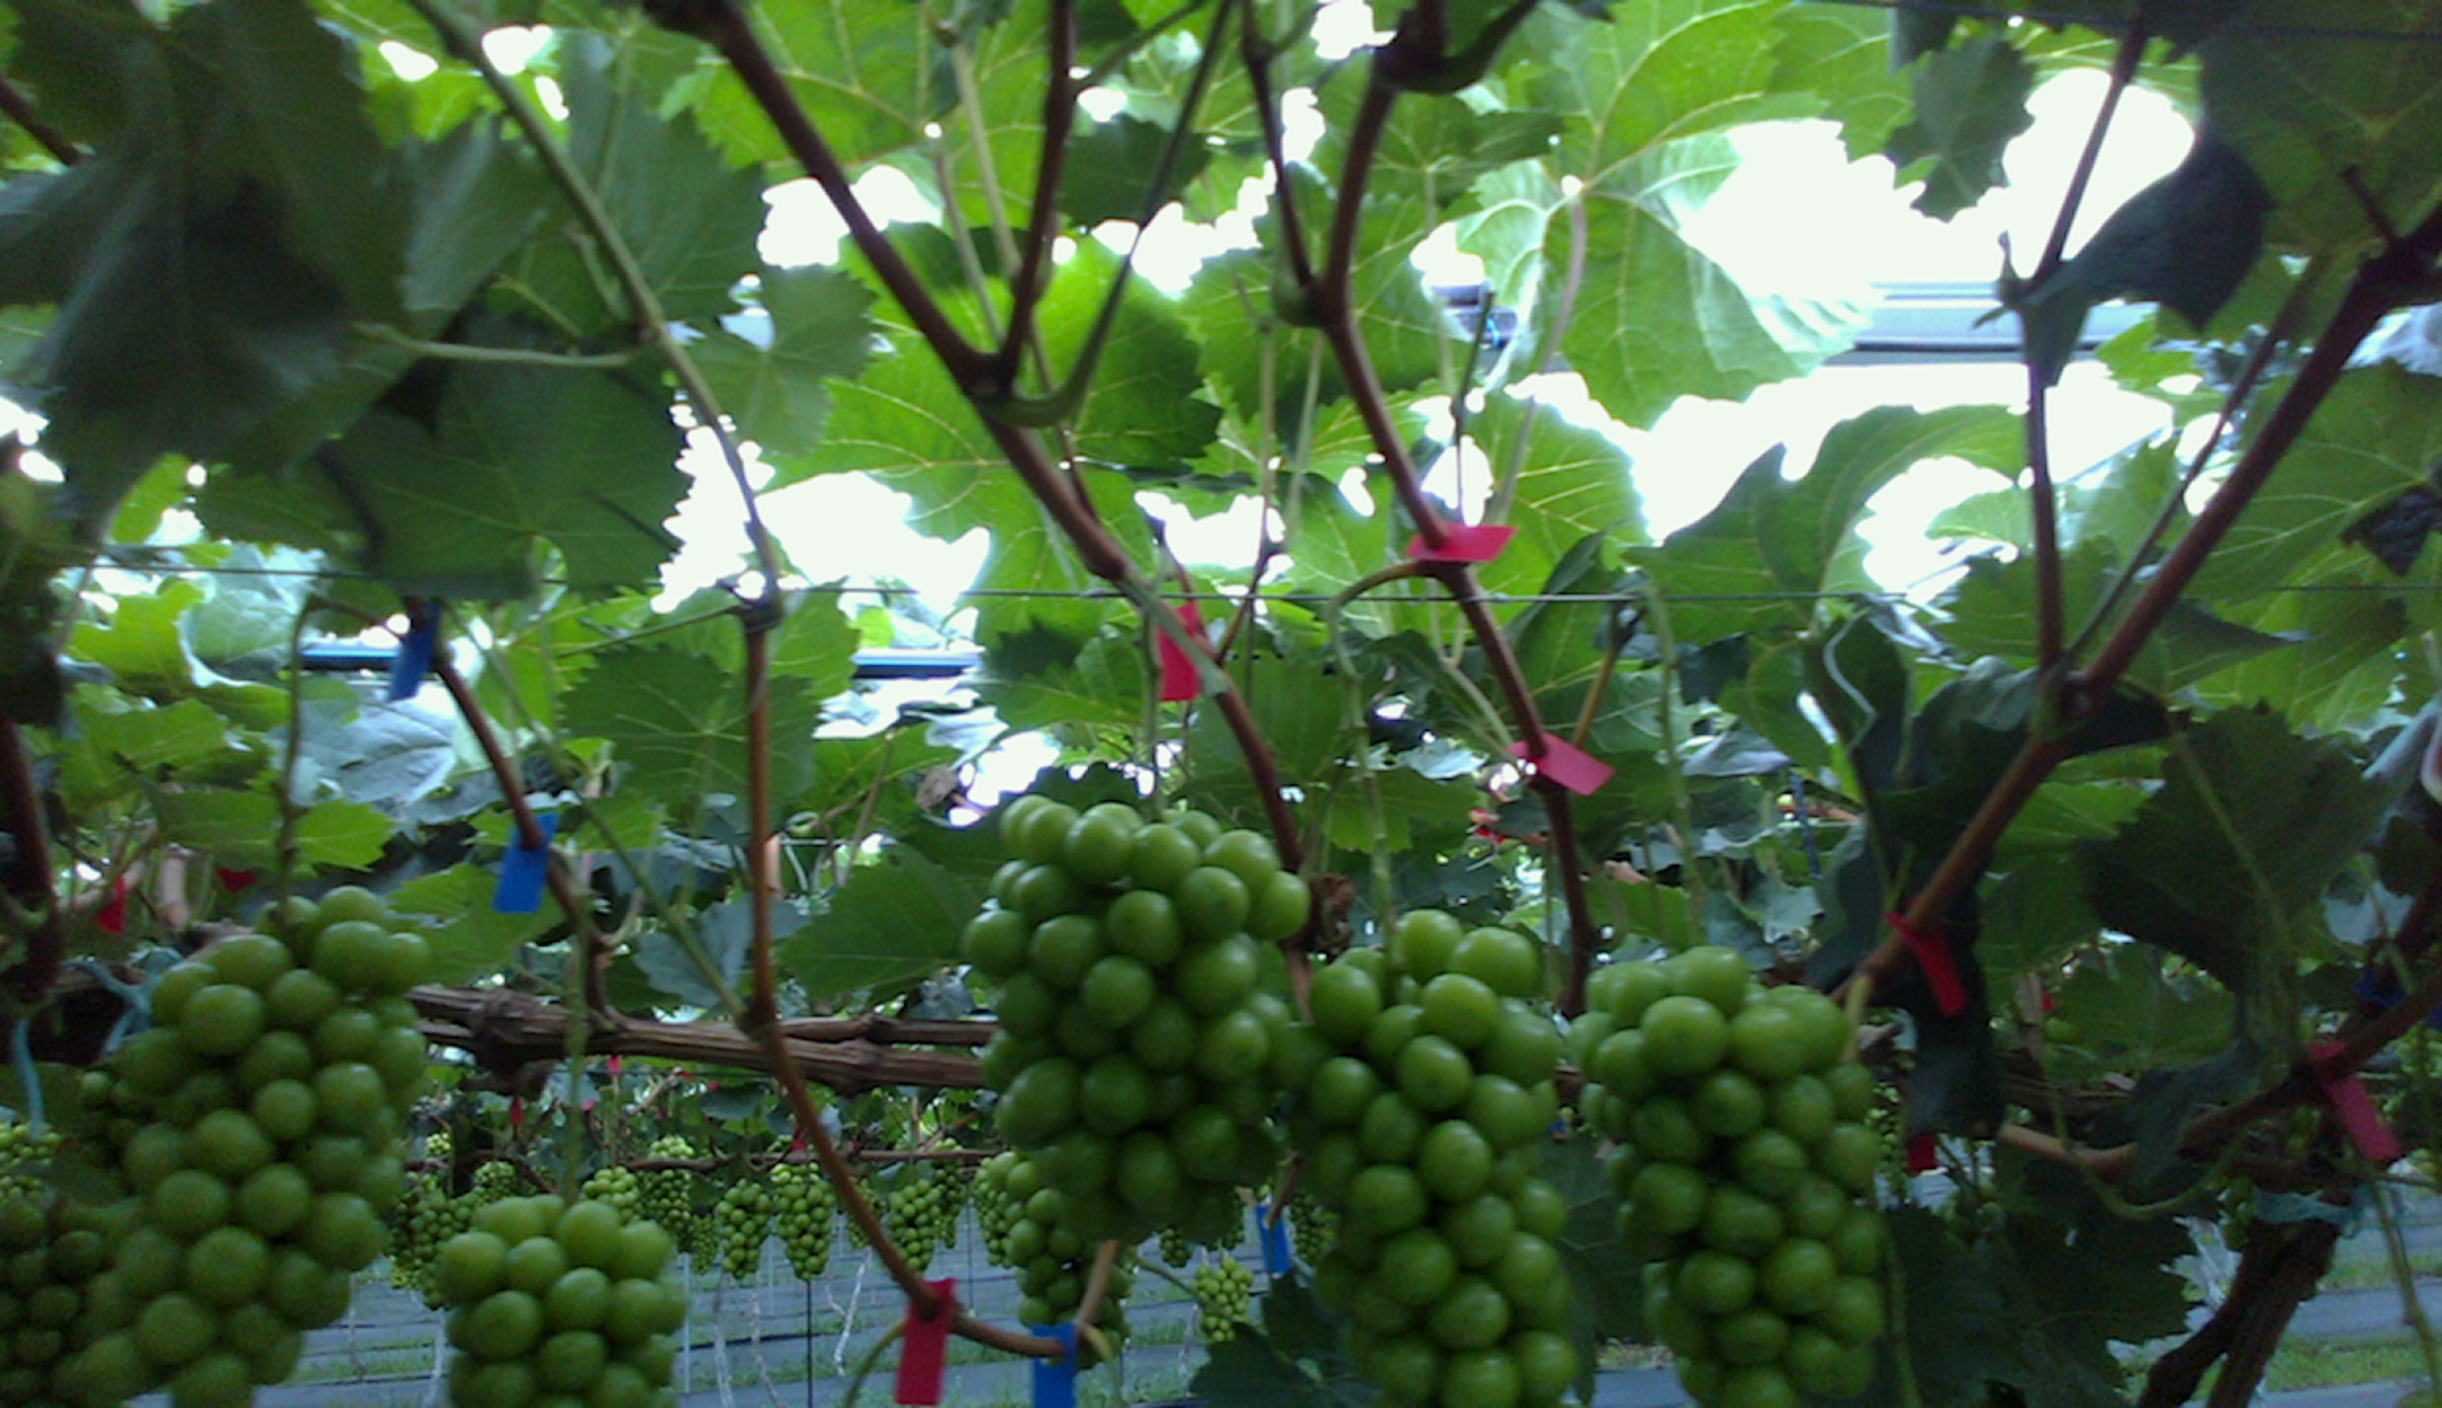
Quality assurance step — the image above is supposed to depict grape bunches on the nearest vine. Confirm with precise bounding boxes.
[965,794,1313,1246]
[92,890,432,1406]
[1567,945,1892,1406]
[434,1197,683,1406]
[1268,907,1575,1406]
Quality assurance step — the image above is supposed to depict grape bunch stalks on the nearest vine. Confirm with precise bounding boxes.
[1133,620,1162,819]
[1321,565,1403,1001]
[264,594,378,943]
[556,851,587,1201]
[1636,585,1708,943]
